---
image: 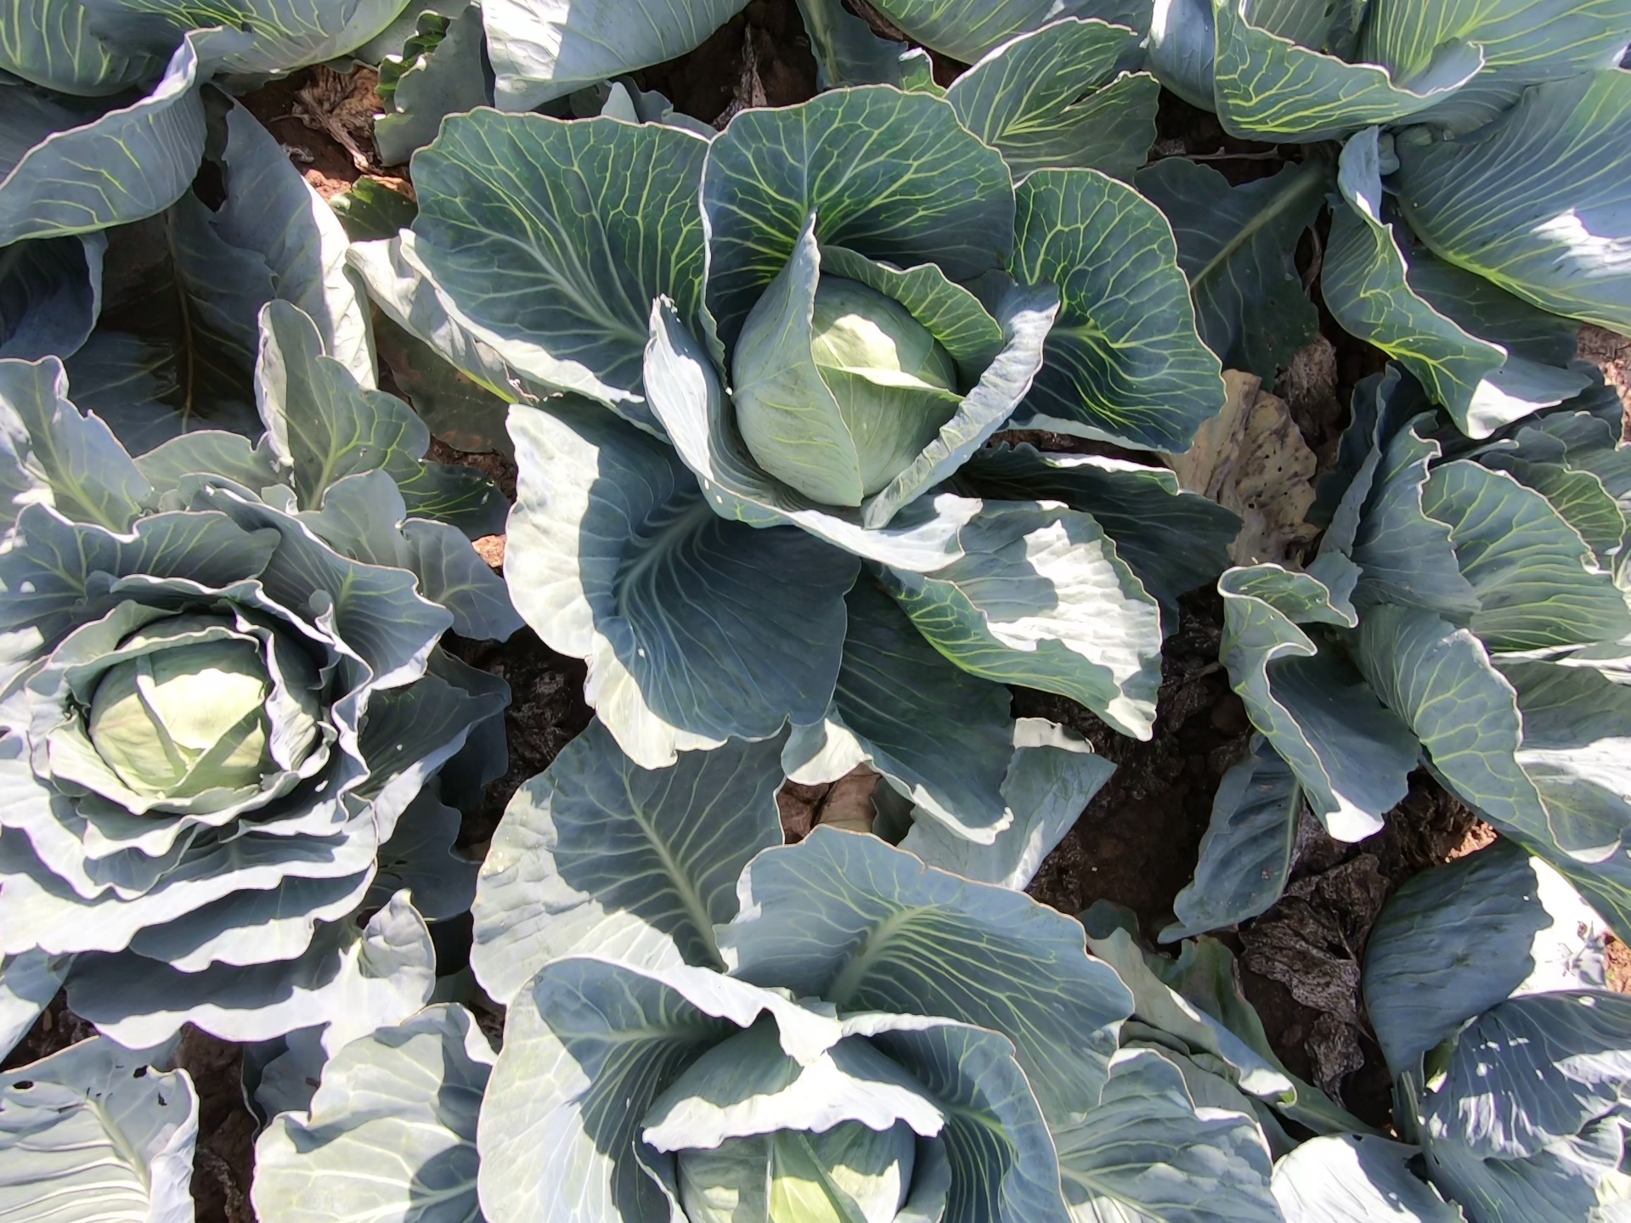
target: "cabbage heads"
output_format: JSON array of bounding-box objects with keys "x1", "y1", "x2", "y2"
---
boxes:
[
  {"x1": 676, "y1": 1031, "x2": 921, "y2": 1220},
  {"x1": 93, "y1": 617, "x2": 319, "y2": 803},
  {"x1": 743, "y1": 270, "x2": 959, "y2": 494}
]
